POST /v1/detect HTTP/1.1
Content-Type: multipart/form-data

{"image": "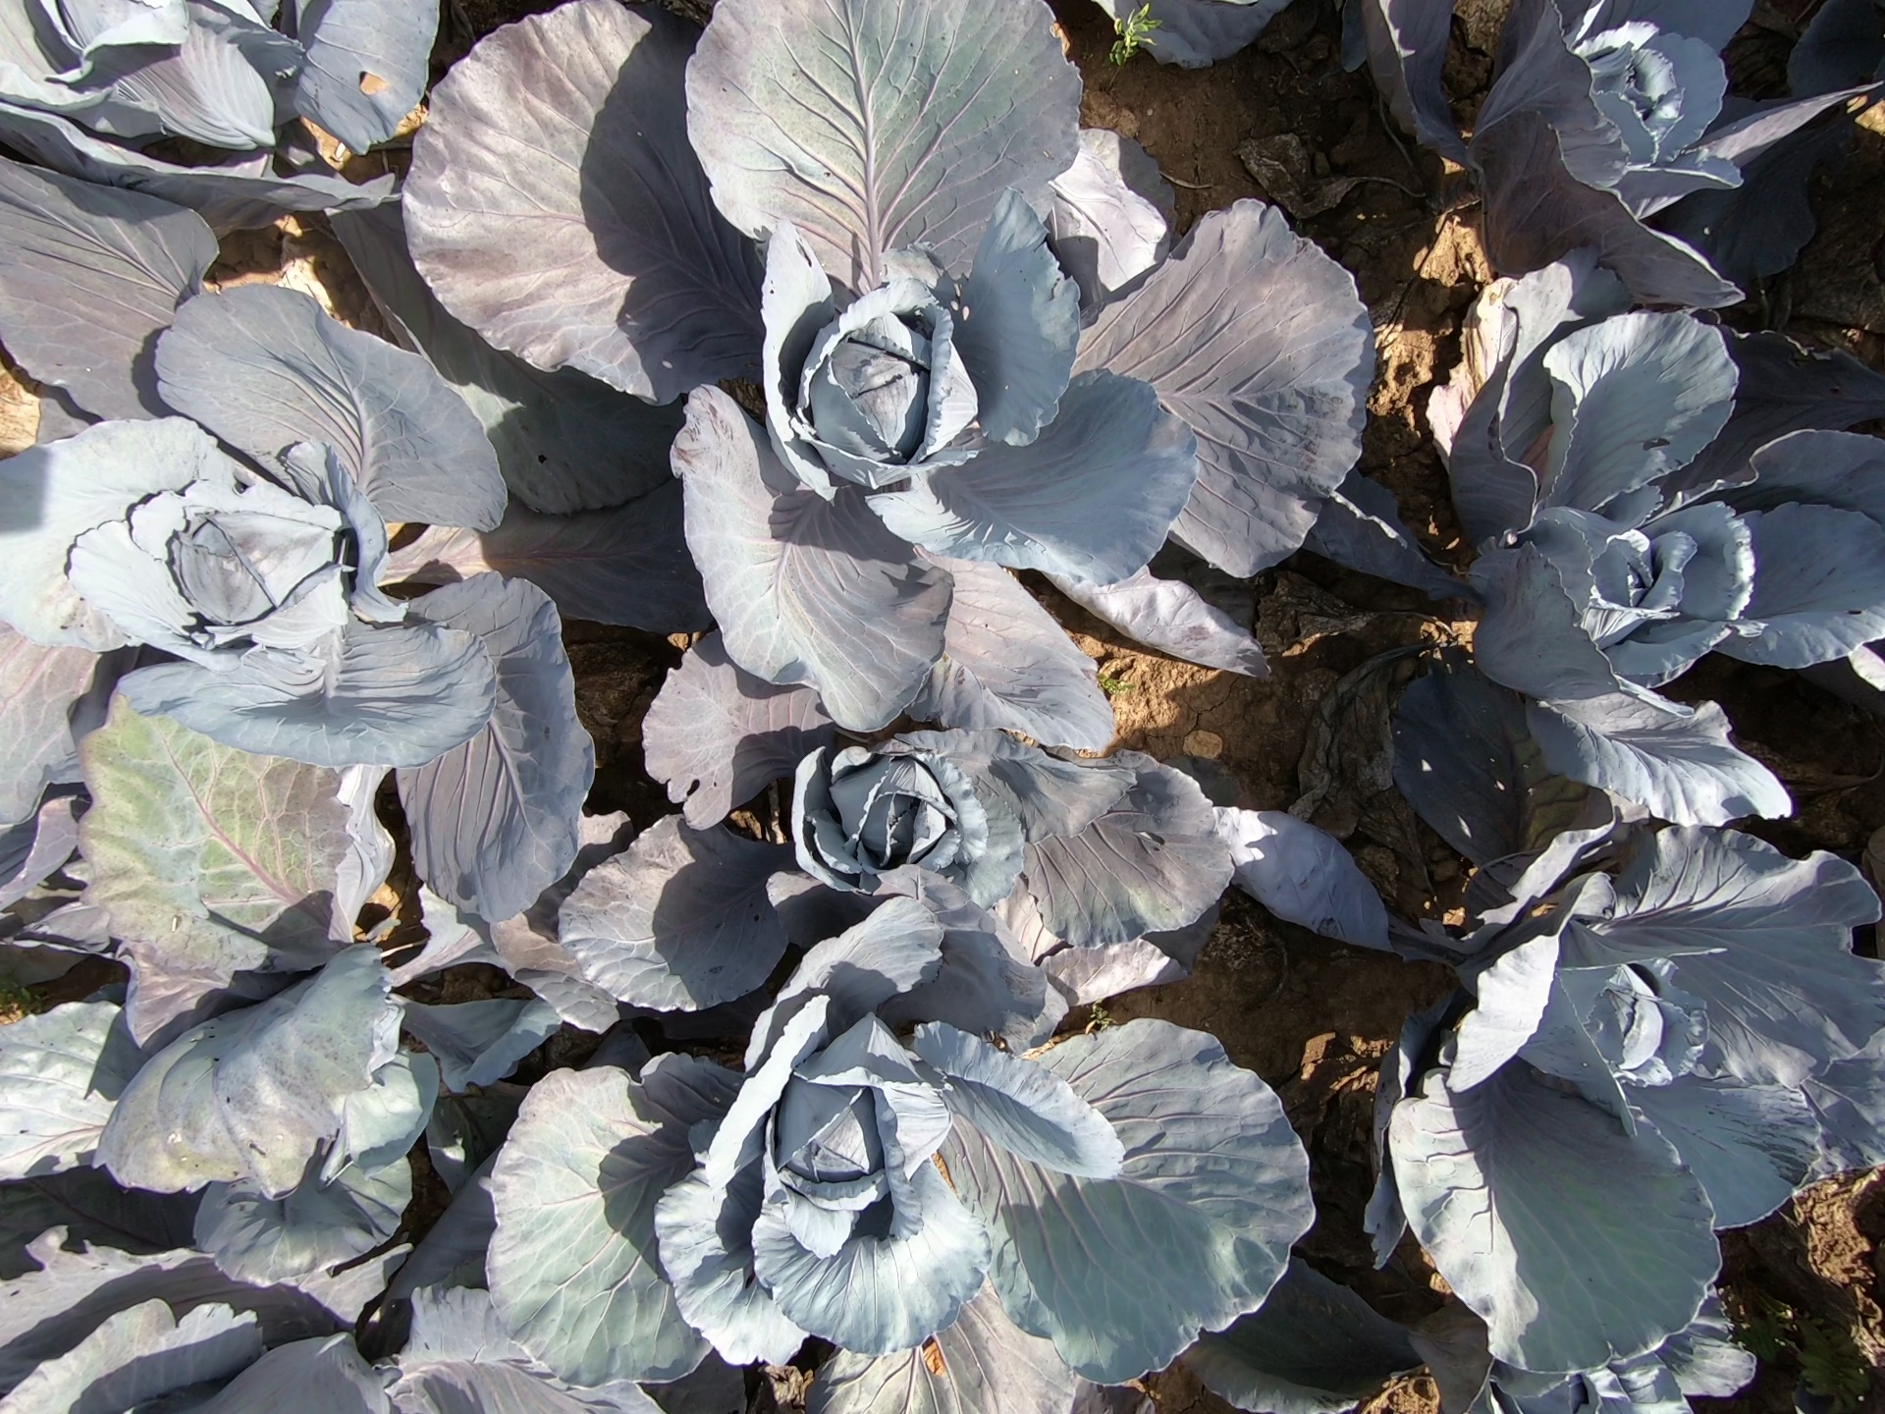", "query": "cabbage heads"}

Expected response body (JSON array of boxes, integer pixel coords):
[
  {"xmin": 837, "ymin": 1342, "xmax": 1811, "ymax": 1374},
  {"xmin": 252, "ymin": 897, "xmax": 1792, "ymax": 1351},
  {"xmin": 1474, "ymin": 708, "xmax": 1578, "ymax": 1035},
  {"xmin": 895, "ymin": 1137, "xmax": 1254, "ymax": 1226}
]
[
  {"xmin": 781, "ymin": 1052, "xmax": 916, "ymax": 1205},
  {"xmin": 277, "ymin": 985, "xmax": 407, "ymax": 1107},
  {"xmin": 176, "ymin": 501, "xmax": 335, "ymax": 628},
  {"xmin": 847, "ymin": 763, "xmax": 945, "ymax": 857},
  {"xmin": 1531, "ymin": 67, "xmax": 1664, "ymax": 189},
  {"xmin": 813, "ymin": 322, "xmax": 956, "ymax": 463},
  {"xmin": 1484, "ymin": 930, "xmax": 1665, "ymax": 1078},
  {"xmin": 1538, "ymin": 513, "xmax": 1657, "ymax": 645},
  {"xmin": 45, "ymin": 0, "xmax": 246, "ymax": 113}
]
